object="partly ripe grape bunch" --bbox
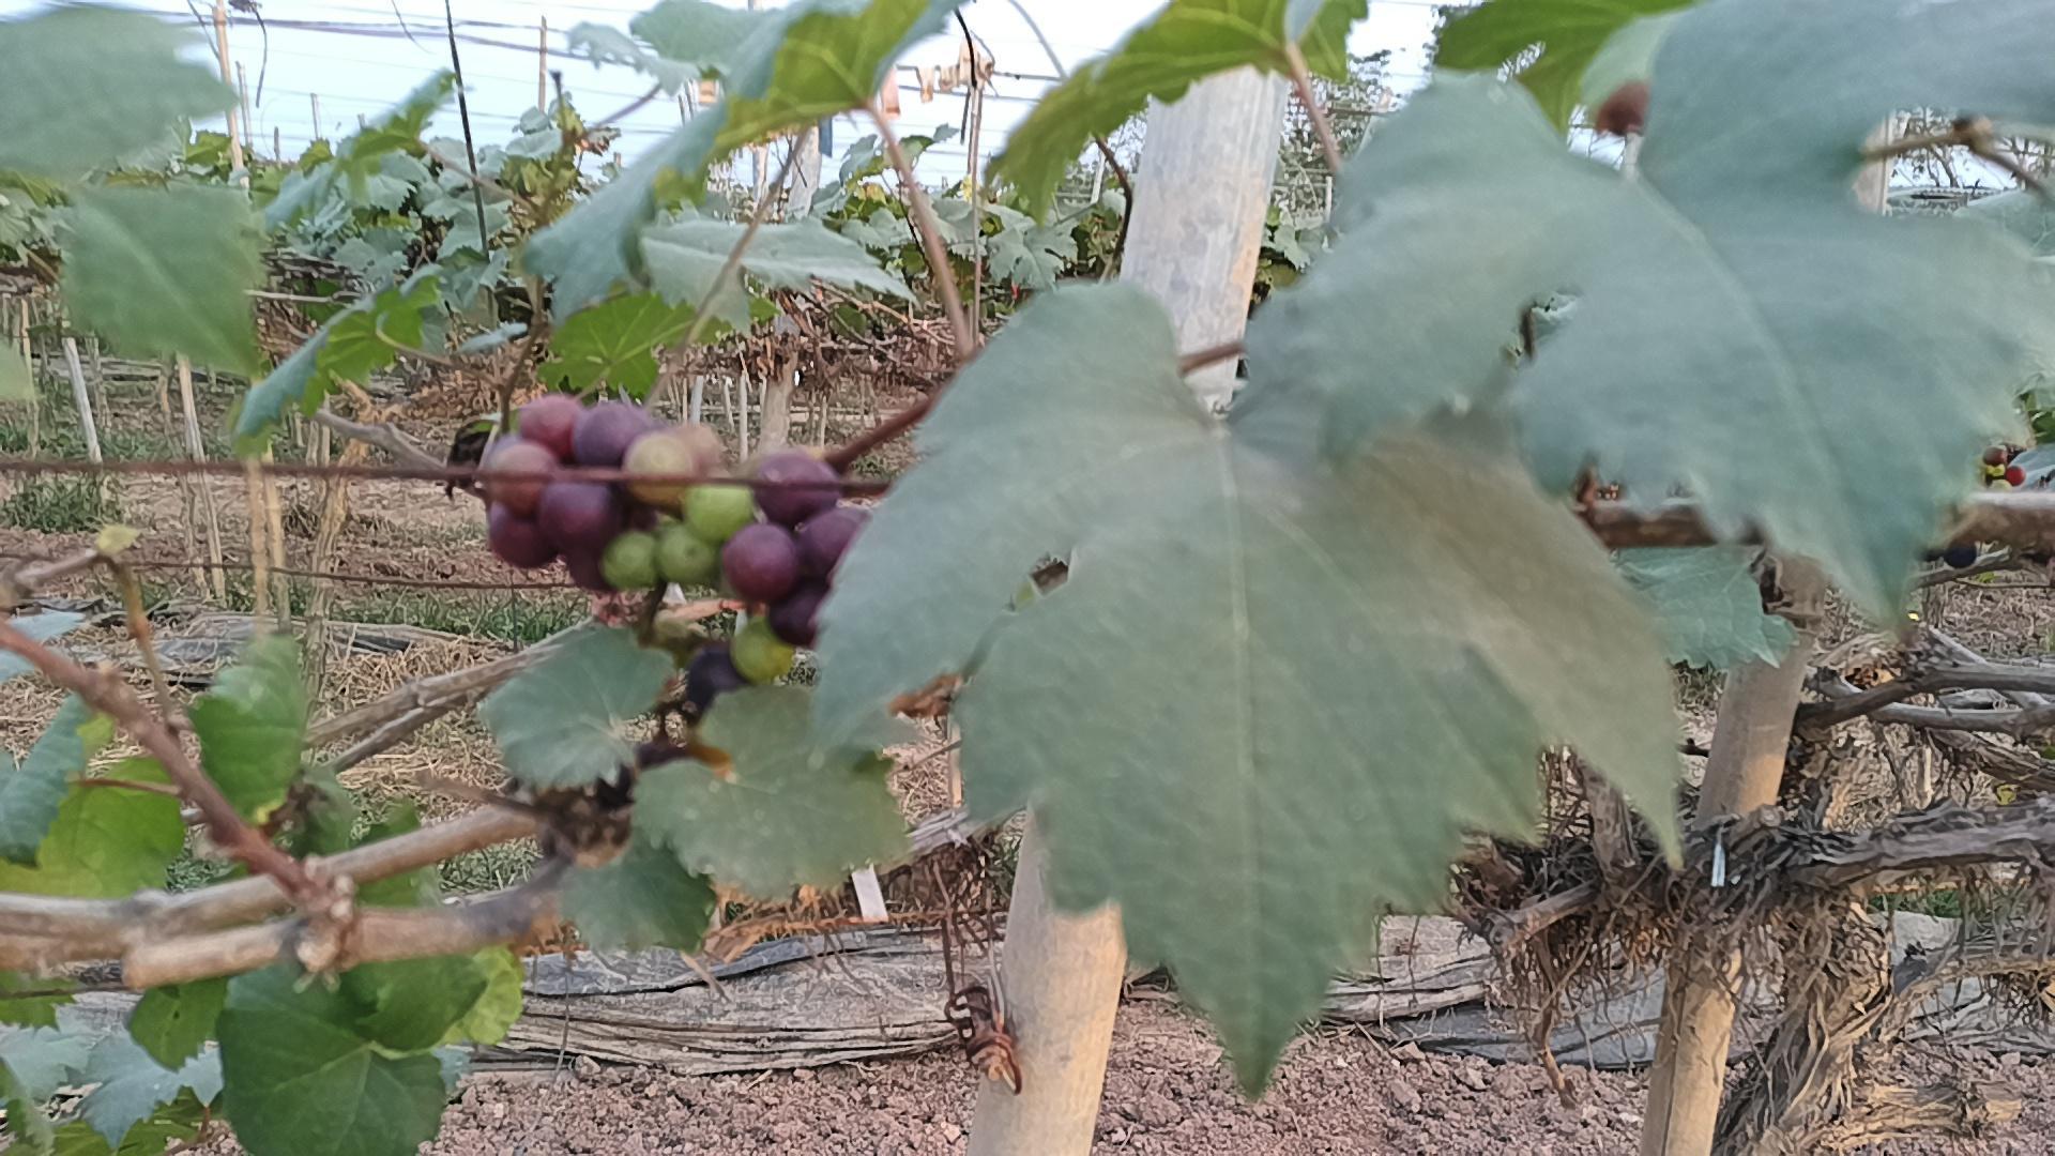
[483,396,873,813]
